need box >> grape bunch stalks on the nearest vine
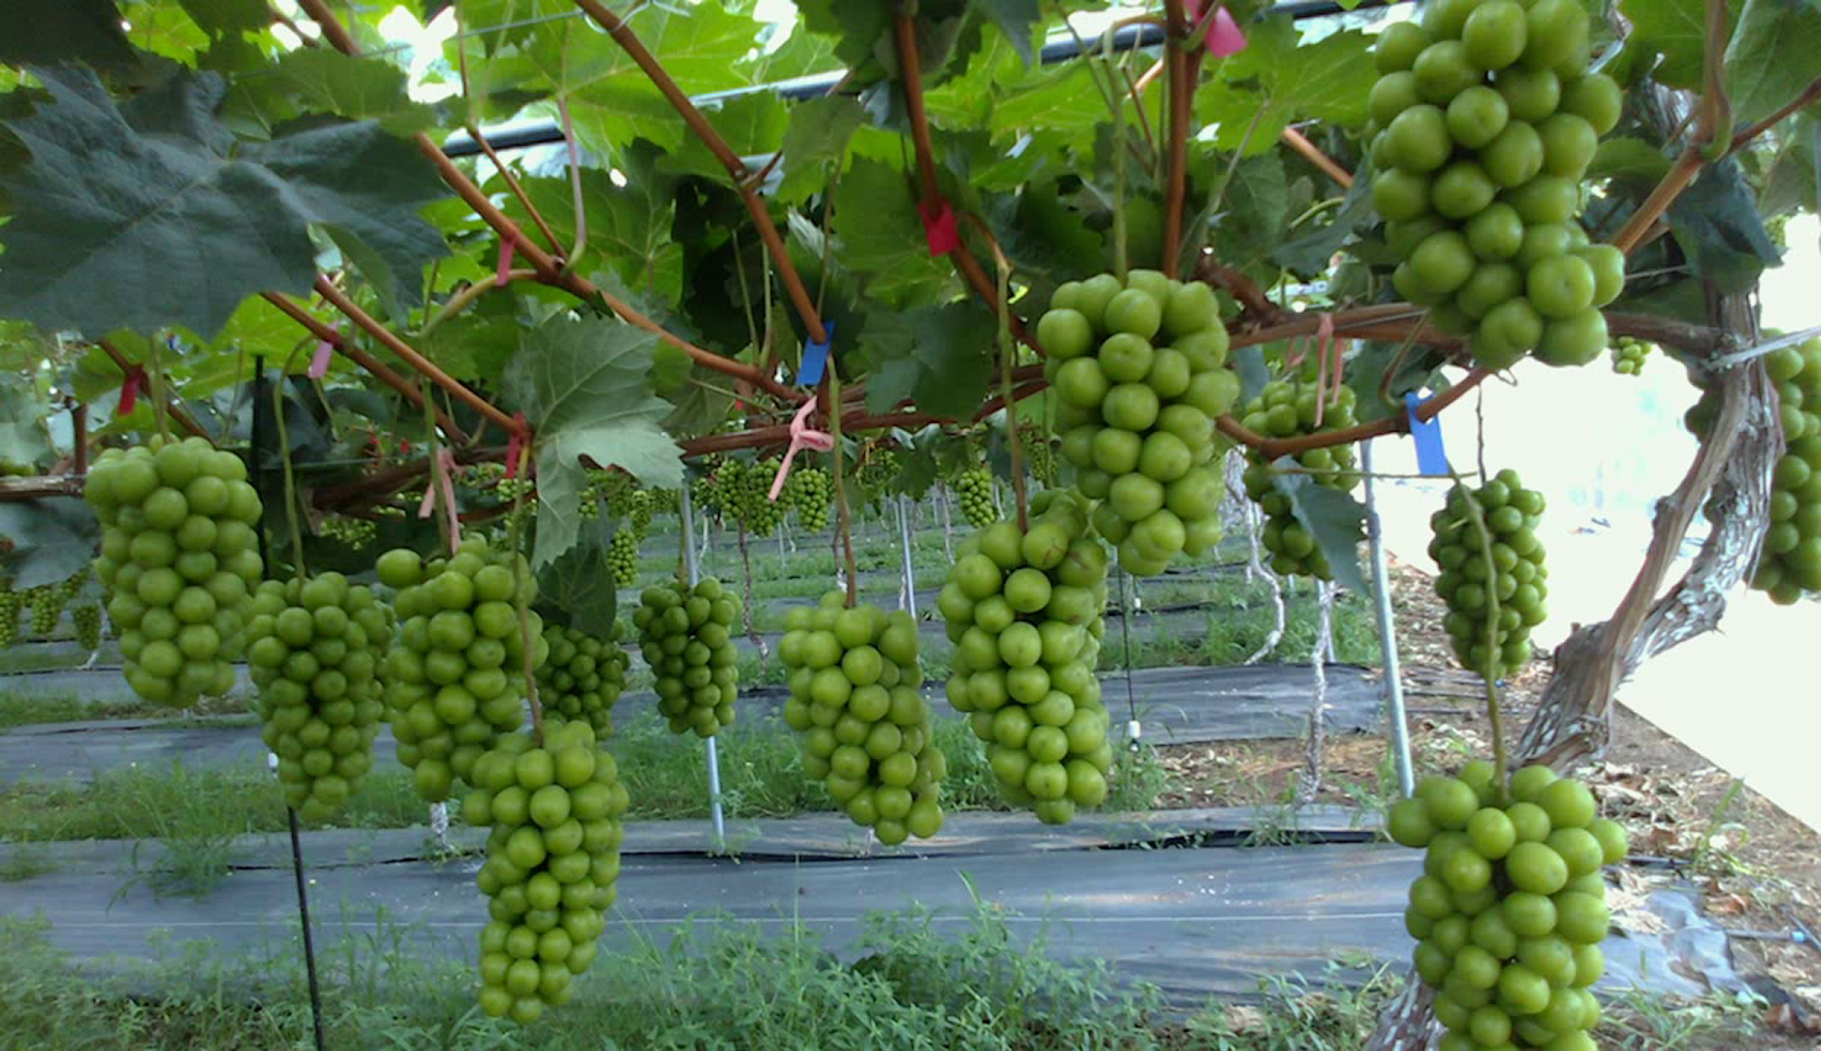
[149,336,168,439]
[1446,463,1512,807]
[827,352,857,606]
[1099,13,1163,288]
[273,336,315,584]
[509,442,543,744]
[960,212,1026,531]
[423,381,452,562]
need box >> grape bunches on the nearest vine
[1036,272,1242,578]
[938,496,1115,828]
[464,718,630,1023]
[248,572,390,823]
[376,540,525,804]
[776,591,947,845]
[1383,758,1631,1050]
[83,435,264,709]
[1367,0,1625,375]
